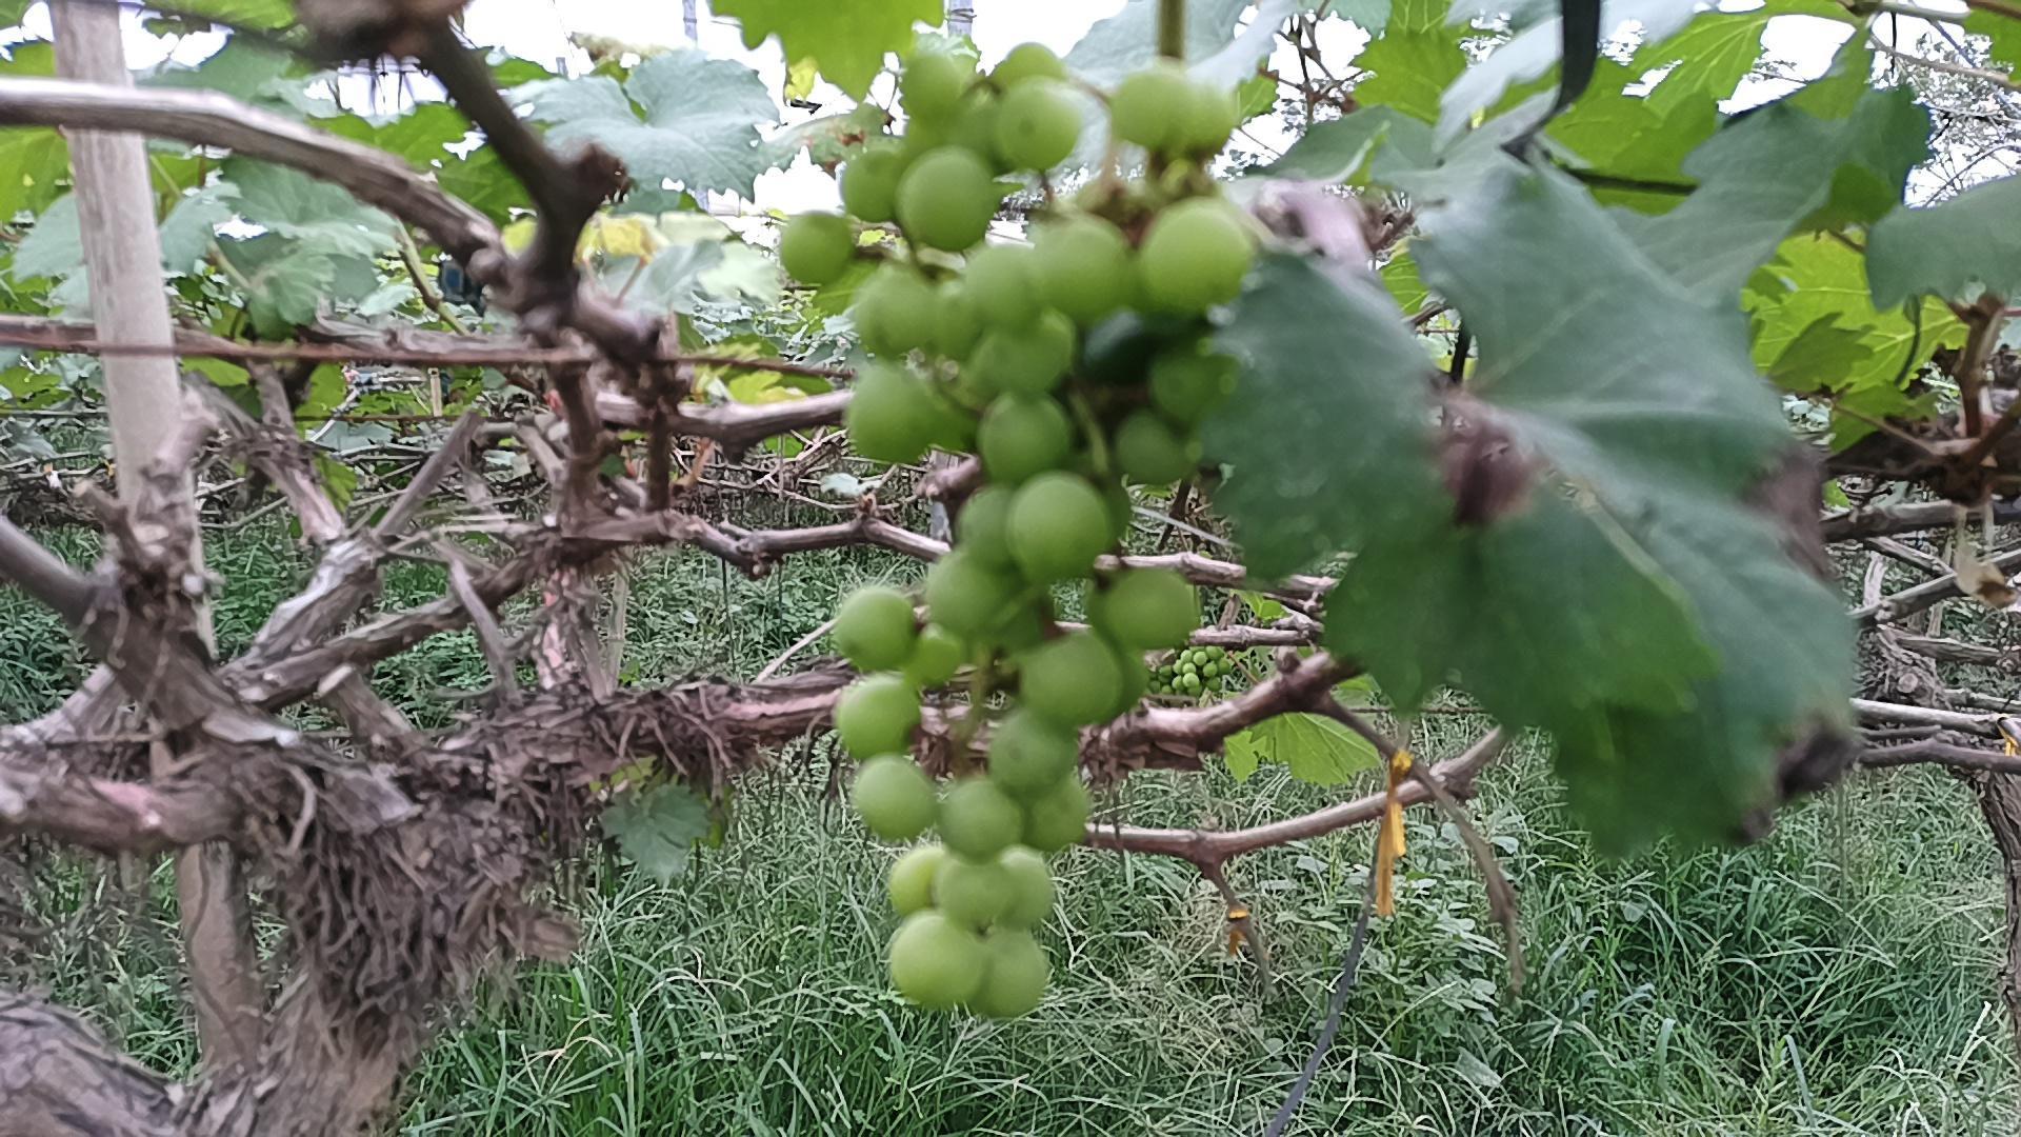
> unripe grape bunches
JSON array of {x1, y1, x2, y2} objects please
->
[
  {"x1": 776, "y1": 42, "x2": 1254, "y2": 1017},
  {"x1": 1150, "y1": 645, "x2": 1230, "y2": 696}
]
